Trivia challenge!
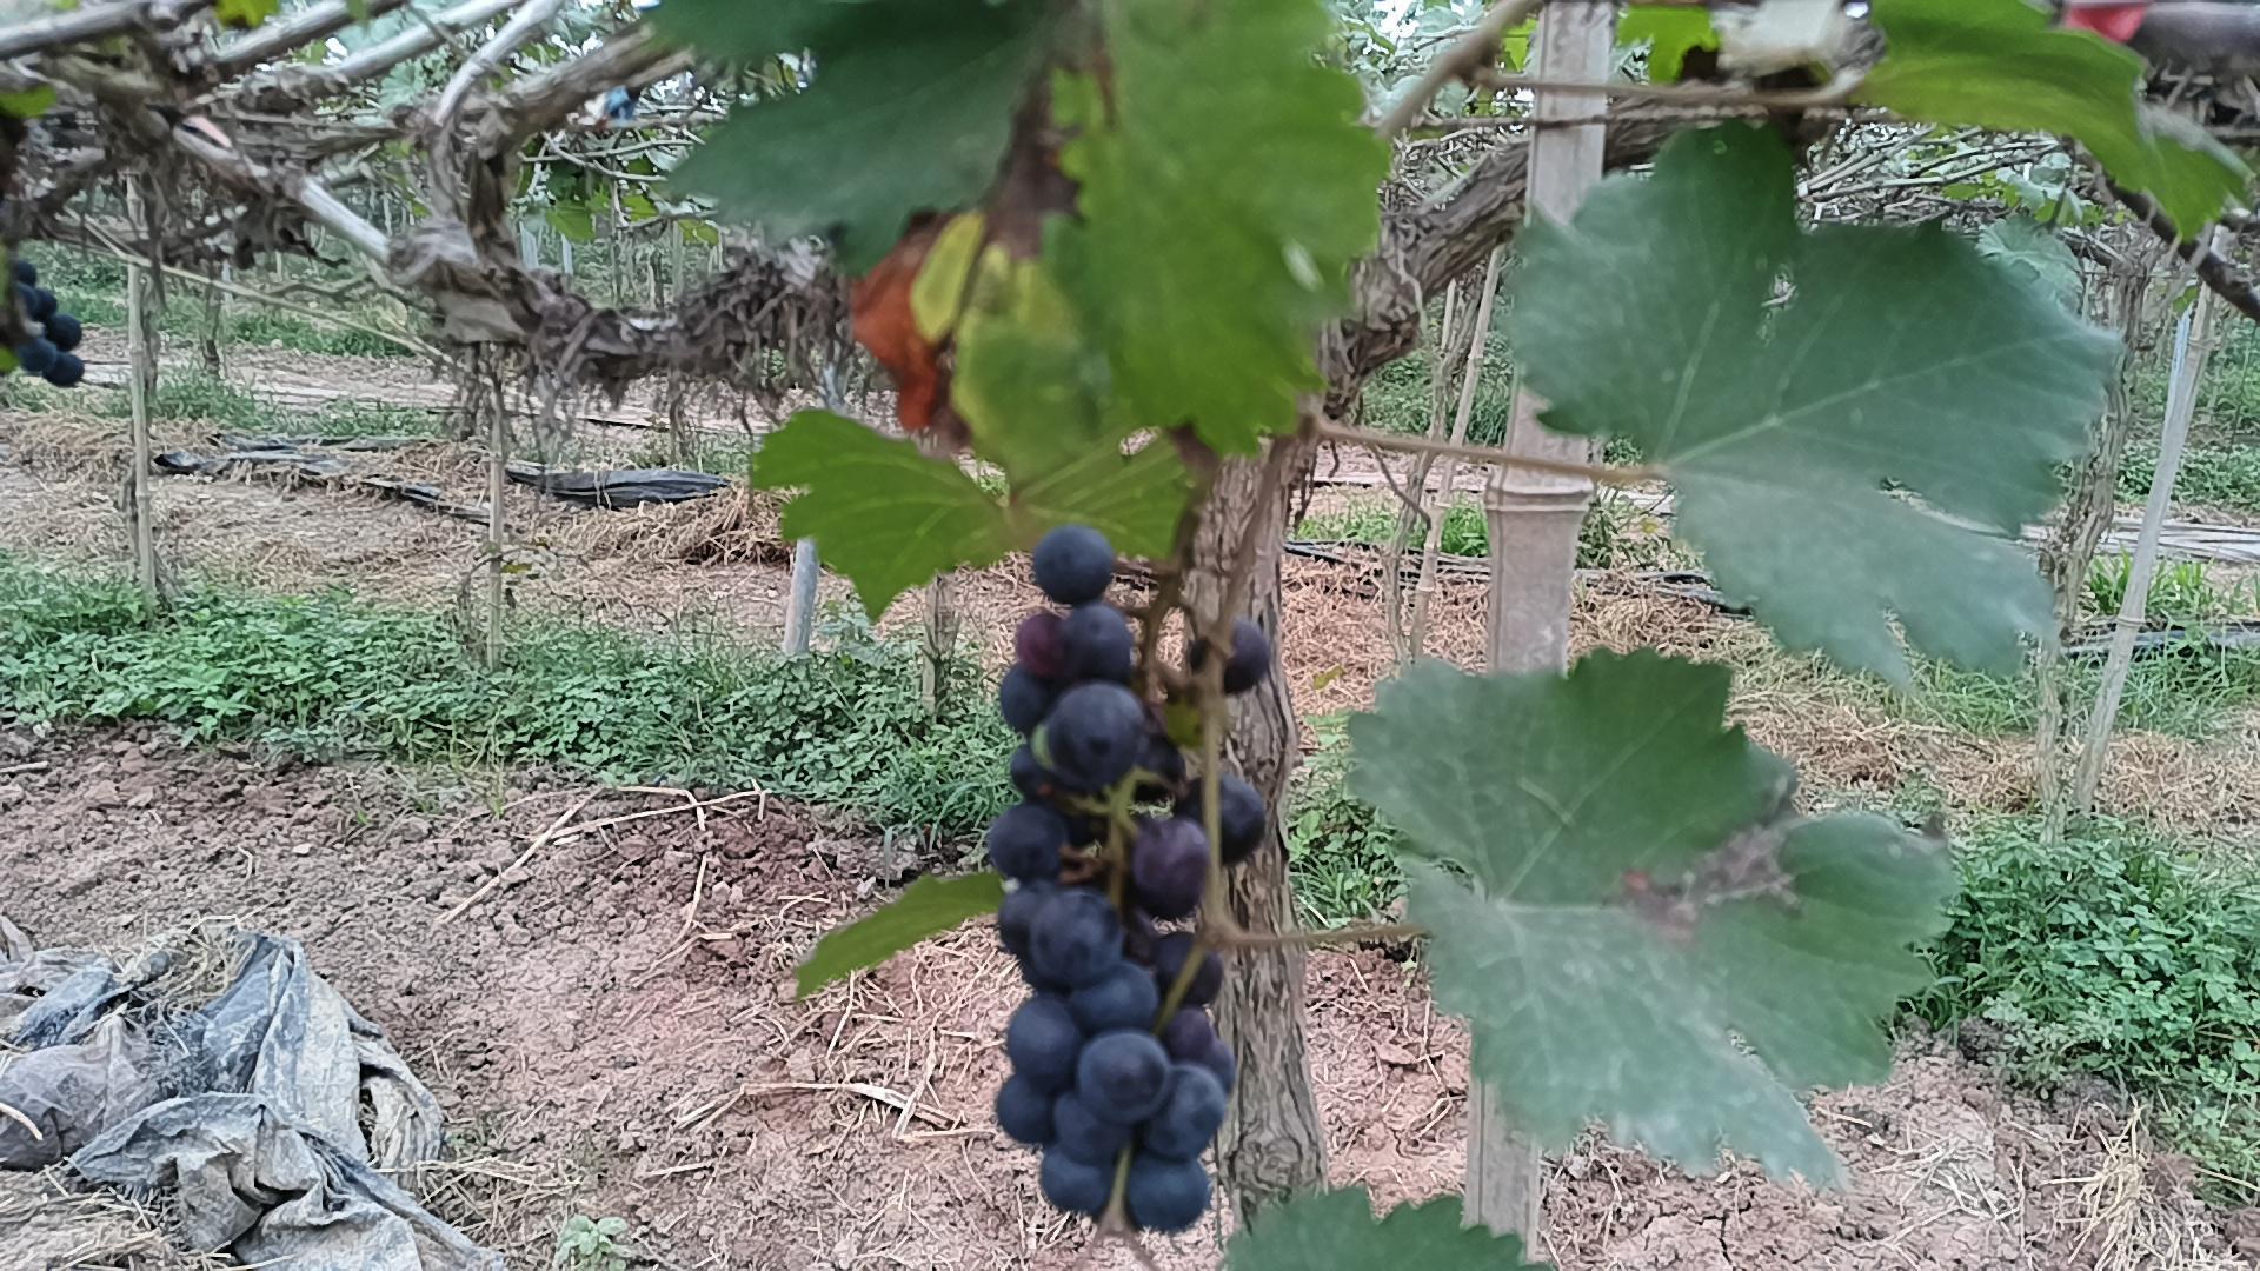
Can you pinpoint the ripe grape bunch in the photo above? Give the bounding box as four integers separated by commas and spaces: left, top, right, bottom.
0, 258, 85, 387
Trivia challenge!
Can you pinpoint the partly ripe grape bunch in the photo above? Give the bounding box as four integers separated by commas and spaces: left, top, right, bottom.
988, 524, 1272, 1239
